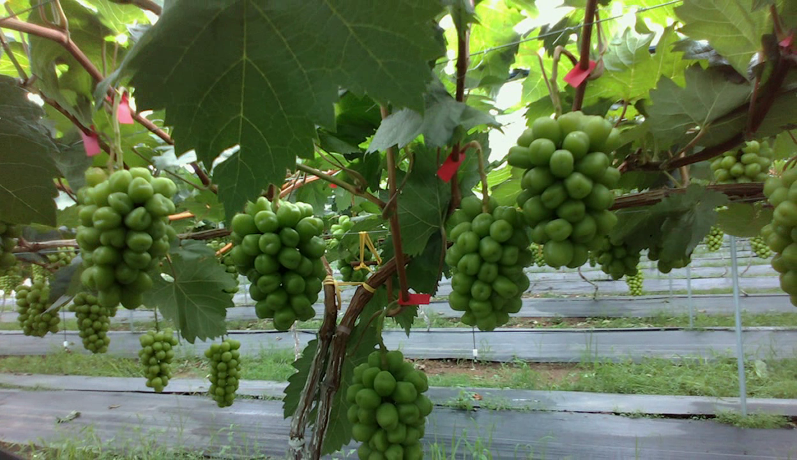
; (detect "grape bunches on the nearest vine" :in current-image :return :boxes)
[445,195,532,332]
[230,196,326,330]
[508,111,623,268]
[762,167,796,306]
[347,350,433,459]
[75,165,178,309]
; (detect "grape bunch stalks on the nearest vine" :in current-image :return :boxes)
[112,86,127,169]
[550,45,579,118]
[459,141,489,211]
[376,299,398,369]
[273,188,282,210]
